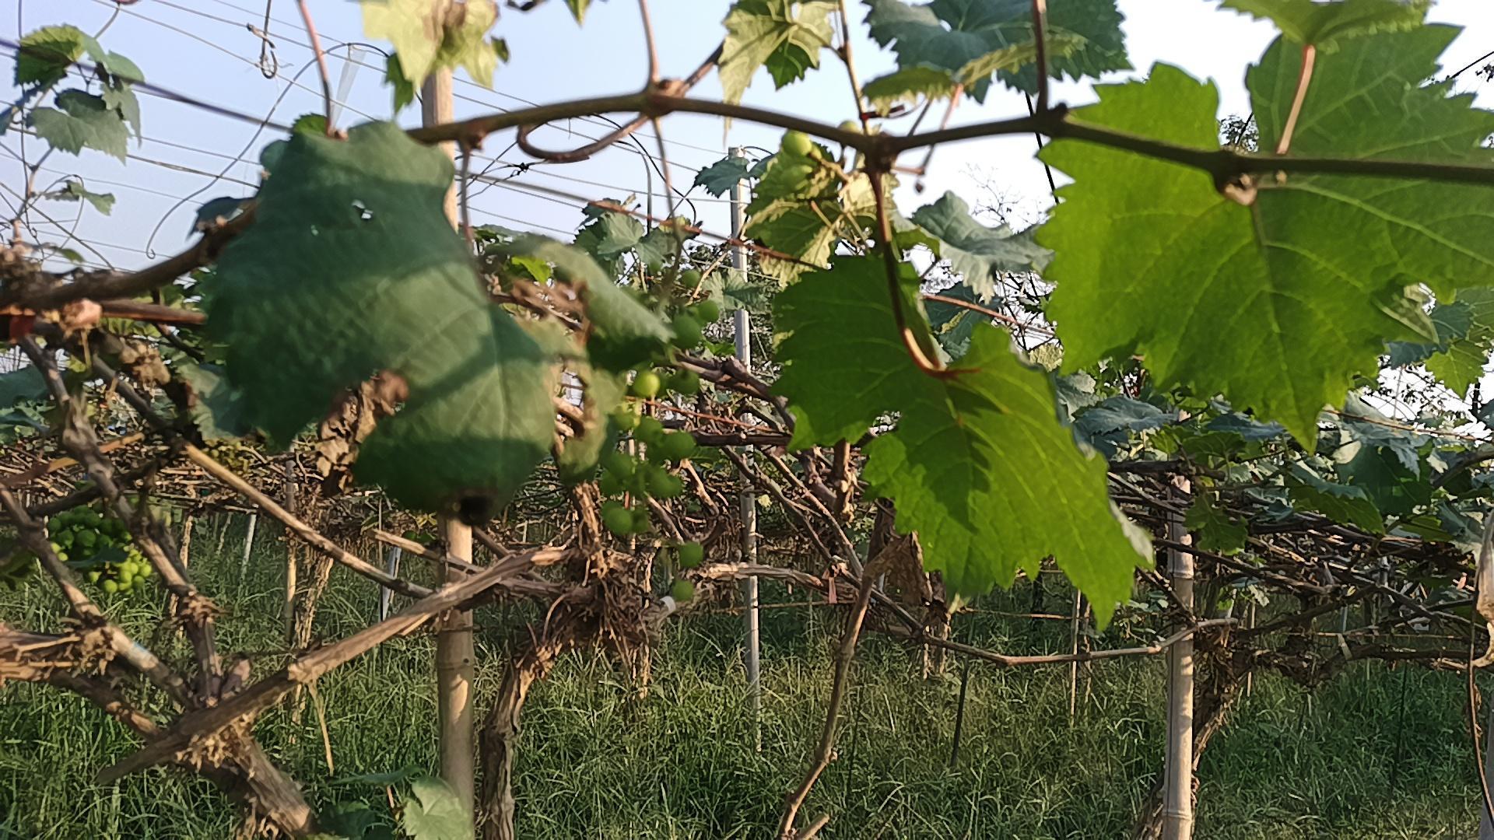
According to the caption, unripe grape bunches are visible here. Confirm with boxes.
[781,131,812,190]
[598,265,720,603]
[49,505,153,594]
